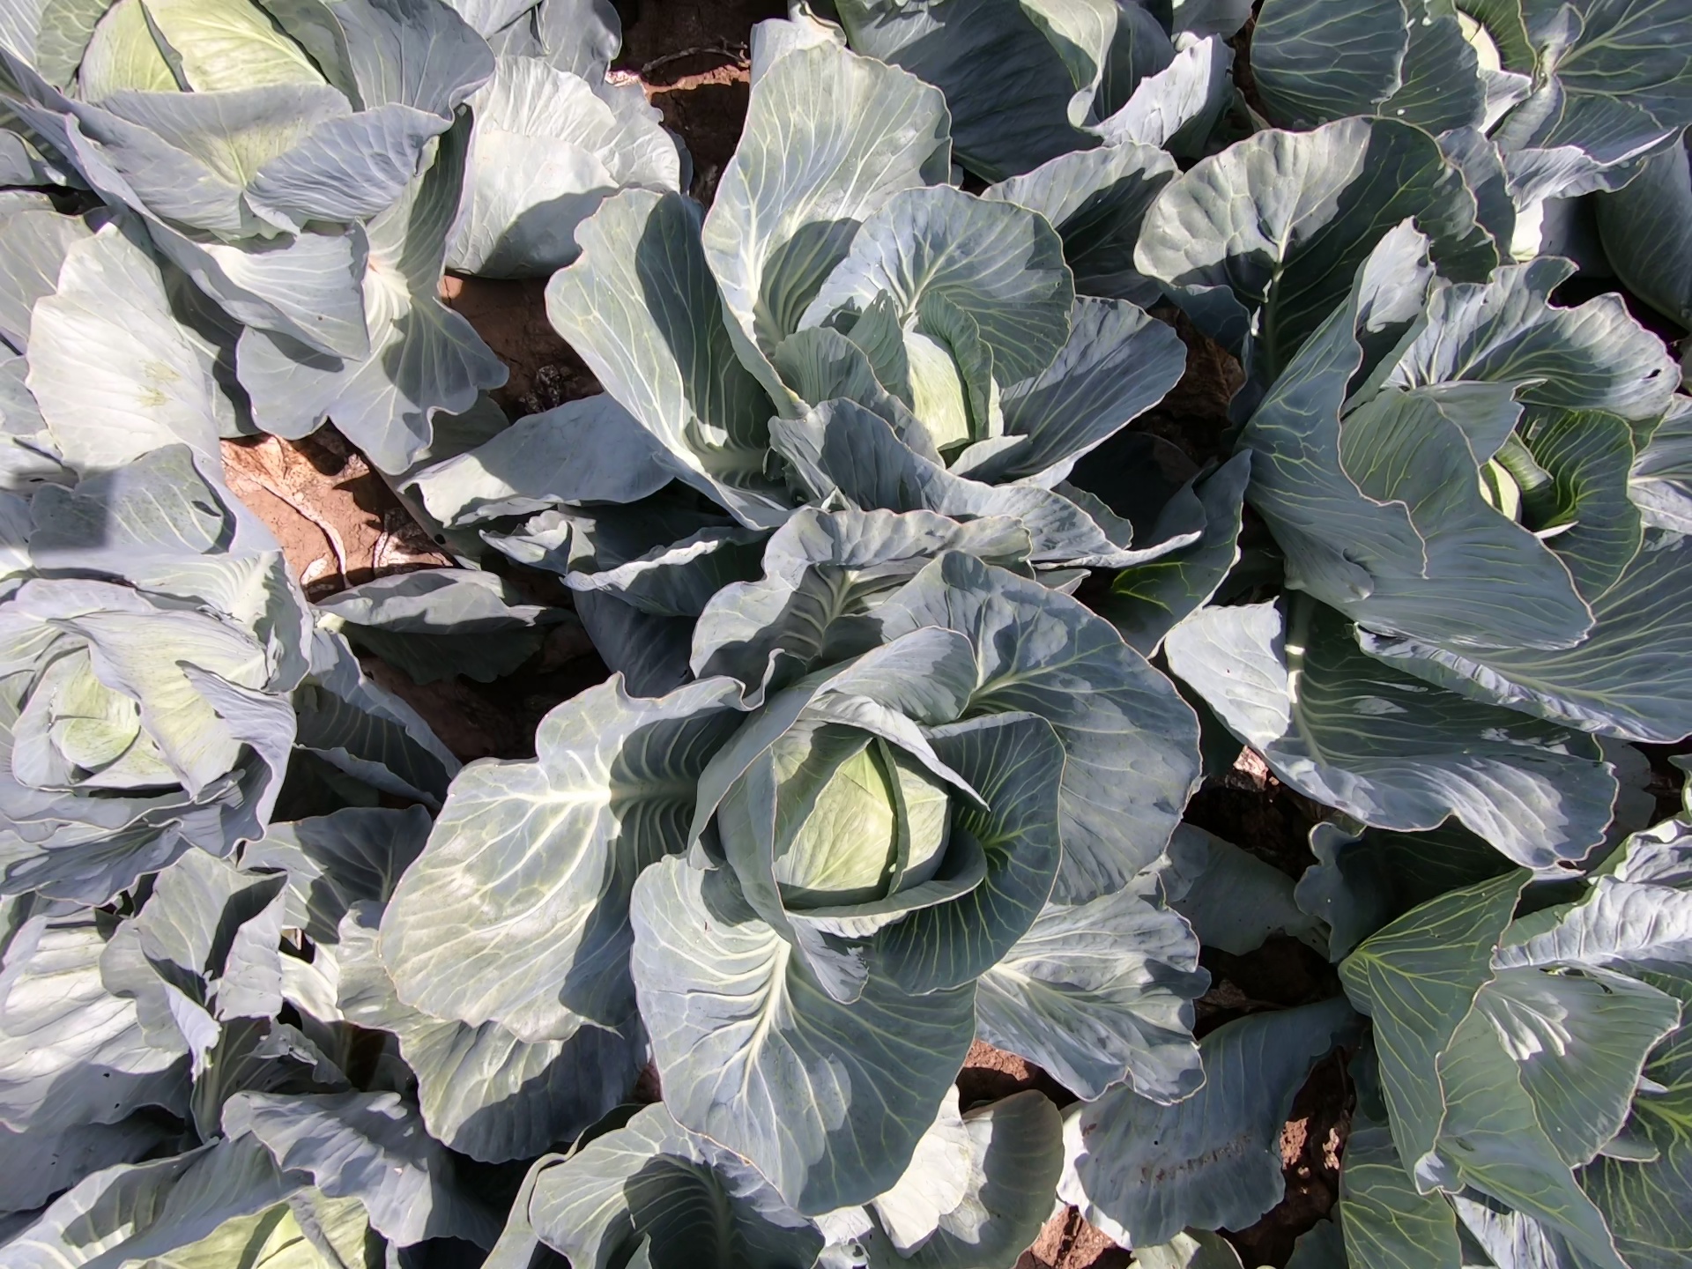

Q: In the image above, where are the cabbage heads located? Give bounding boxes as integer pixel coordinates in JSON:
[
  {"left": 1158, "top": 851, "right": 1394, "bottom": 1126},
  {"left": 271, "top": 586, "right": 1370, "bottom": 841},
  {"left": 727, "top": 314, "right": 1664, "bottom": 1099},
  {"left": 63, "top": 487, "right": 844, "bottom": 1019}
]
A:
[
  {"left": 717, "top": 694, "right": 953, "bottom": 923},
  {"left": 75, "top": 2, "right": 346, "bottom": 234},
  {"left": 152, "top": 1112, "right": 402, "bottom": 1266},
  {"left": 1443, "top": 999, "right": 1626, "bottom": 1165},
  {"left": 834, "top": 325, "right": 1005, "bottom": 498},
  {"left": 25, "top": 607, "right": 261, "bottom": 787},
  {"left": 1346, "top": 5, "right": 1506, "bottom": 156},
  {"left": 1362, "top": 405, "right": 1528, "bottom": 563}
]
